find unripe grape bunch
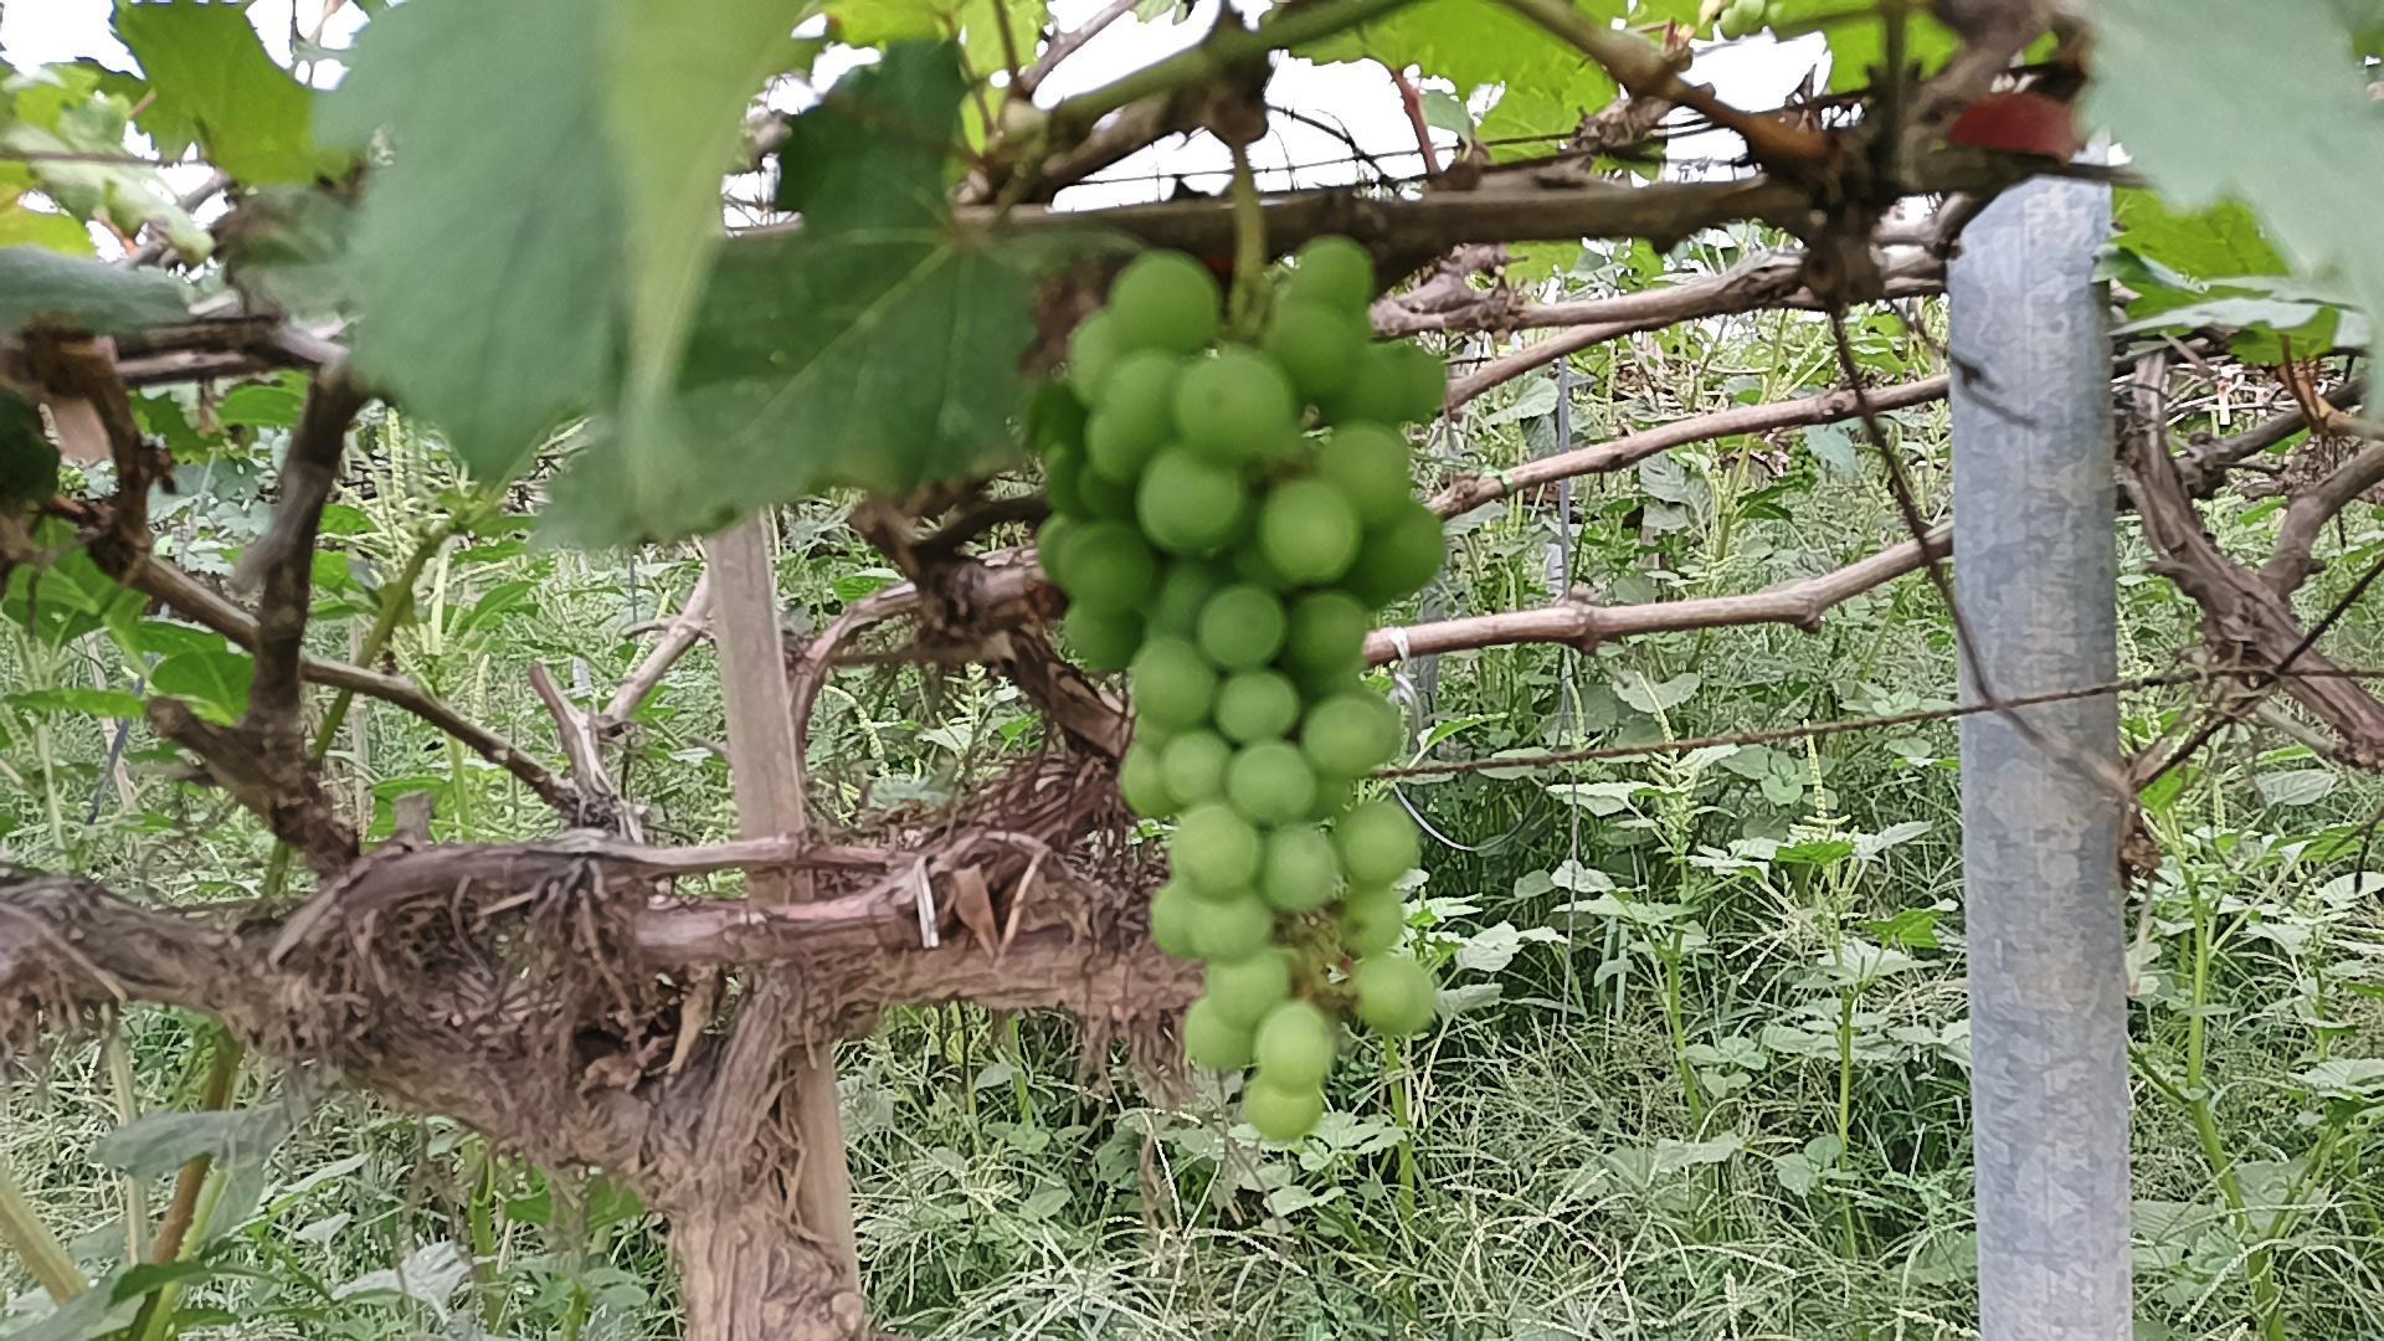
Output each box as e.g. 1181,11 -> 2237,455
1041,232 -> 1447,1135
